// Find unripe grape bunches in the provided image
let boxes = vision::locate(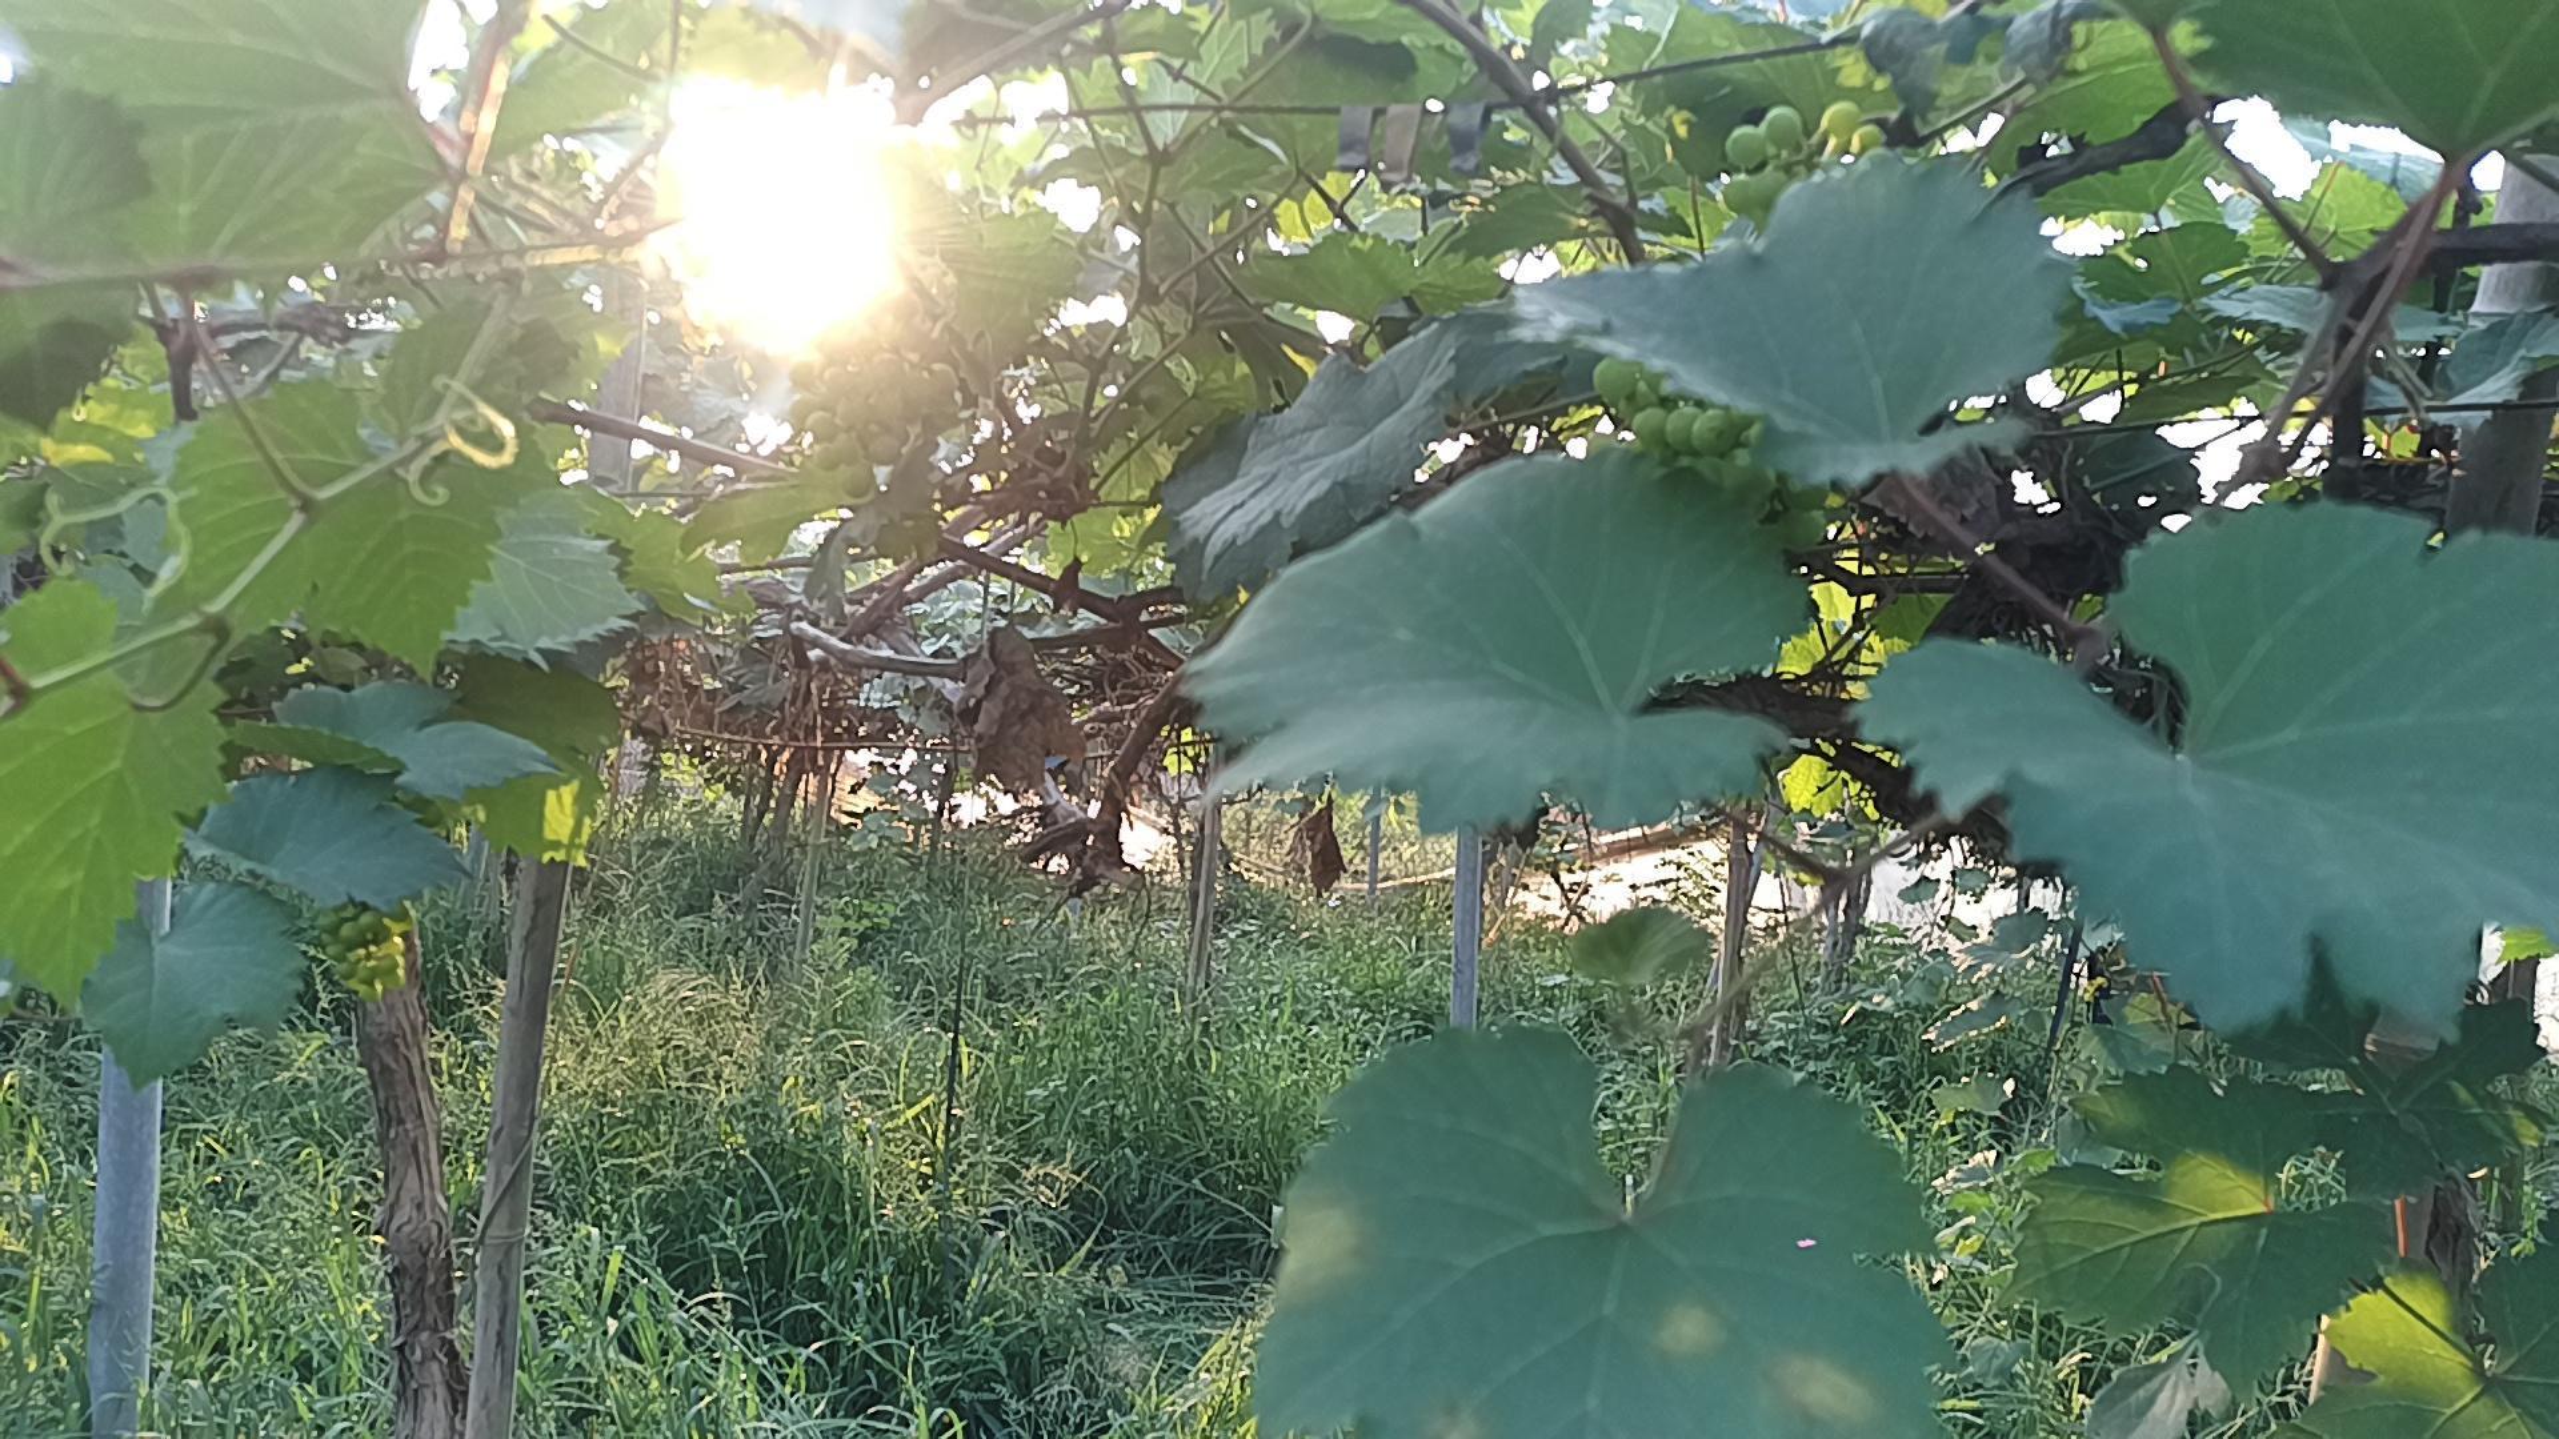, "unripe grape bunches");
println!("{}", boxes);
[1721,100,1885,225]
[1595,358,1769,492]
[788,293,965,502]
[319,905,413,999]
